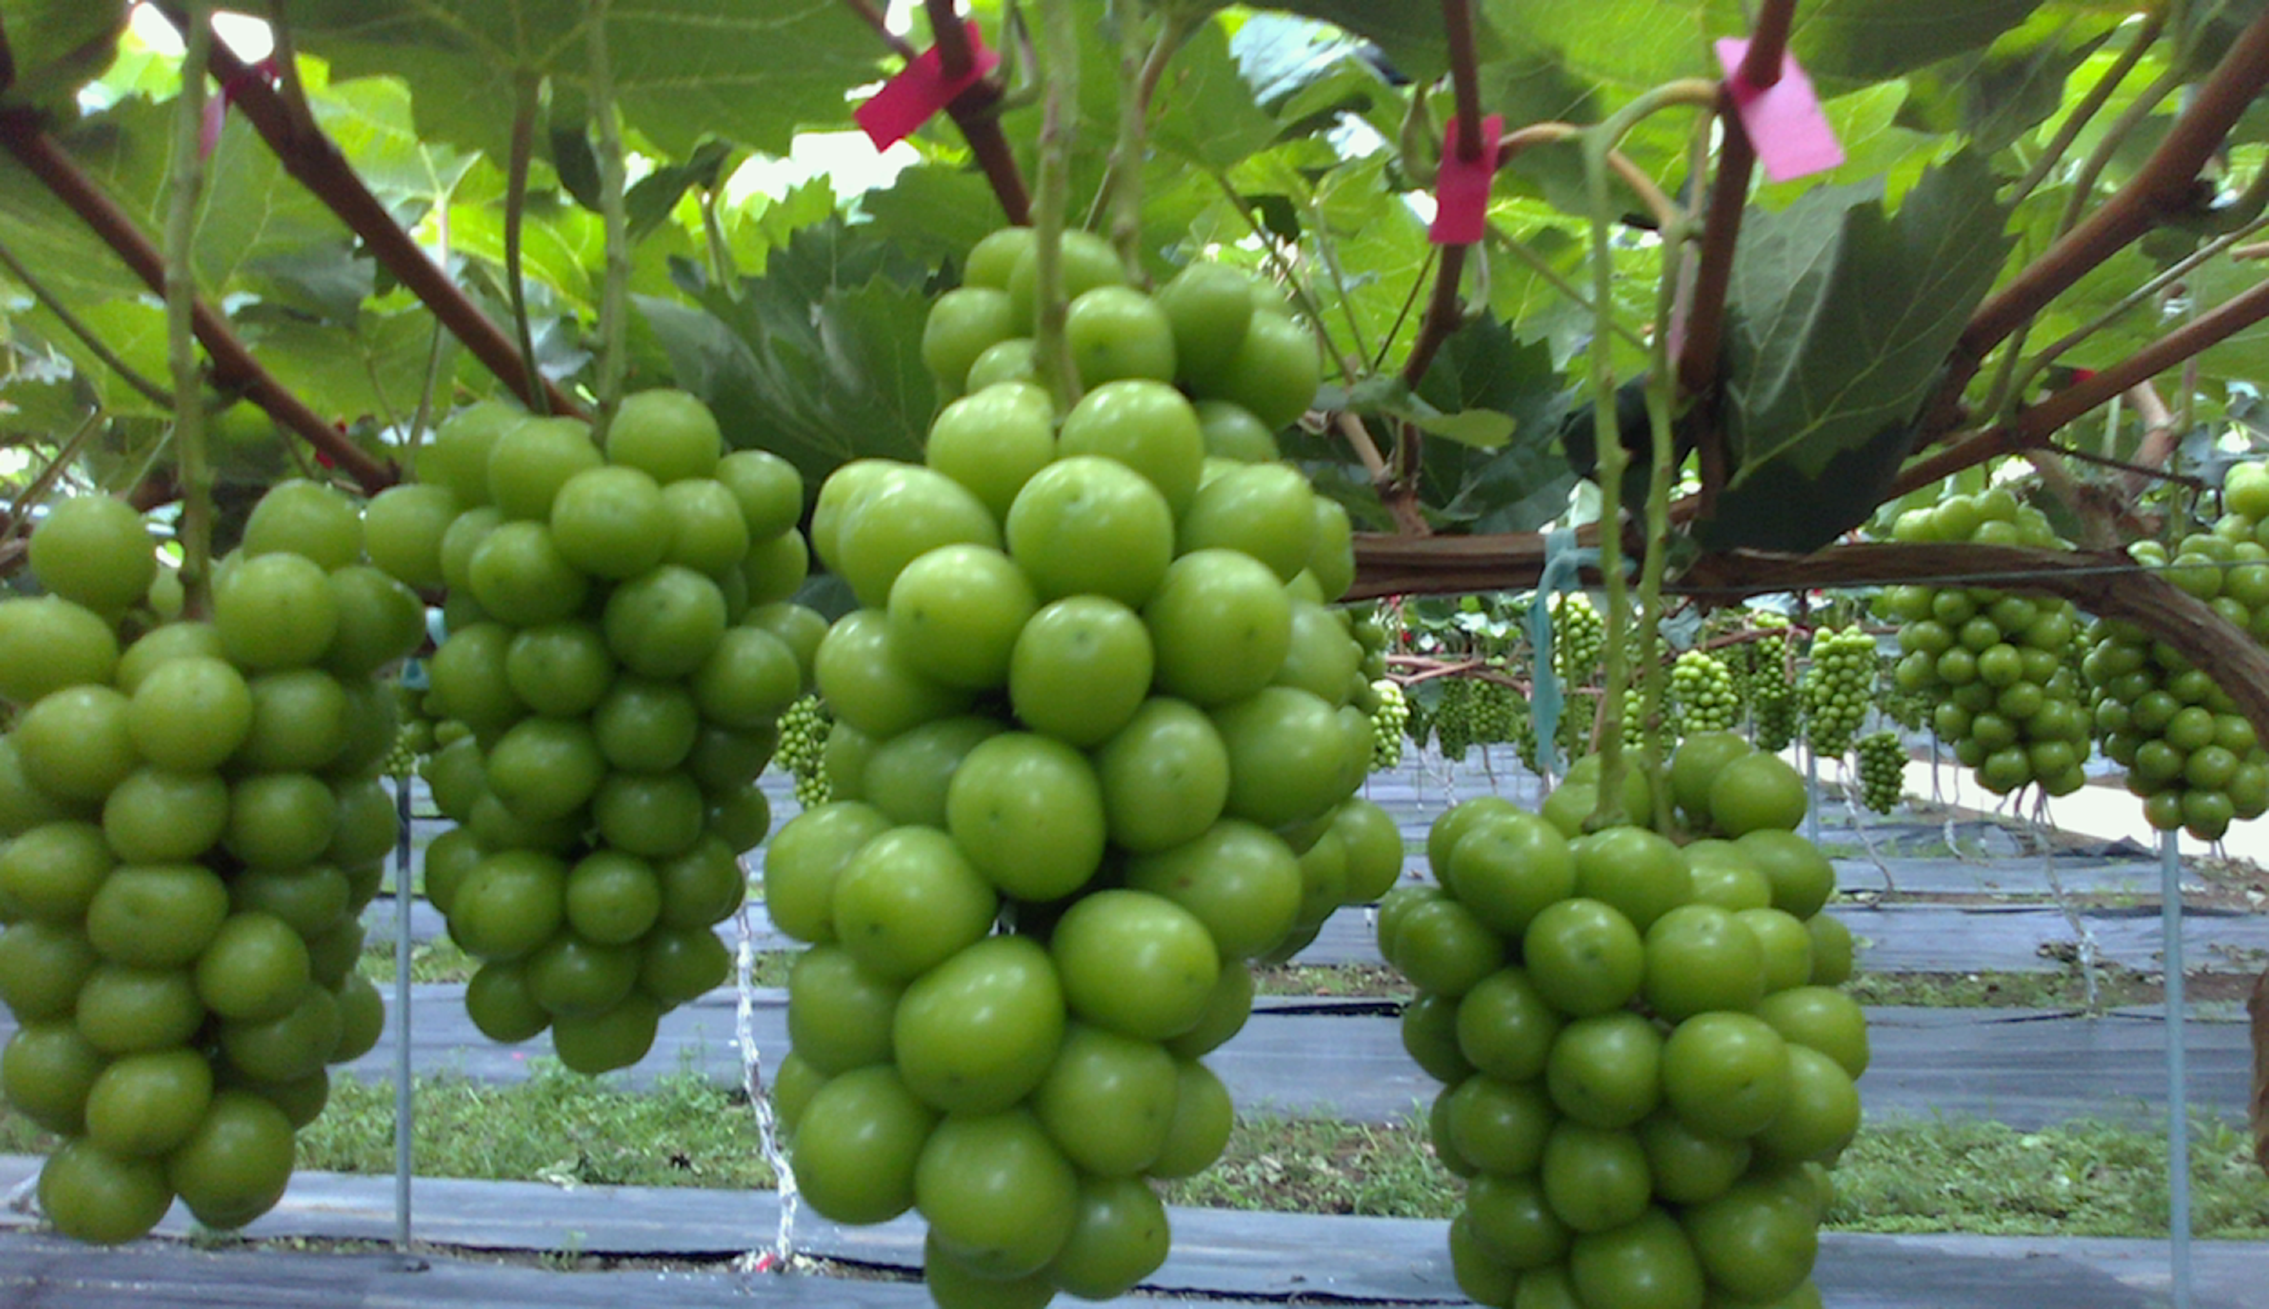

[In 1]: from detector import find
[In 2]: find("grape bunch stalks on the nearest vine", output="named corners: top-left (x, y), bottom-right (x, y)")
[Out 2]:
top-left (1496, 124), bottom-right (1707, 844)
top-left (1033, 2), bottom-right (1076, 420)
top-left (585, 0), bottom-right (627, 440)
top-left (1585, 73), bottom-right (1724, 825)
top-left (164, 2), bottom-right (218, 620)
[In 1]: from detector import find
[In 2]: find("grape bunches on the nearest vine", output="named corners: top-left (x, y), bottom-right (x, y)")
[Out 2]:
top-left (0, 476), bottom-right (451, 1242)
top-left (760, 382), bottom-right (1409, 1307)
top-left (1374, 754), bottom-right (1871, 1307)
top-left (422, 385), bottom-right (833, 1074)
